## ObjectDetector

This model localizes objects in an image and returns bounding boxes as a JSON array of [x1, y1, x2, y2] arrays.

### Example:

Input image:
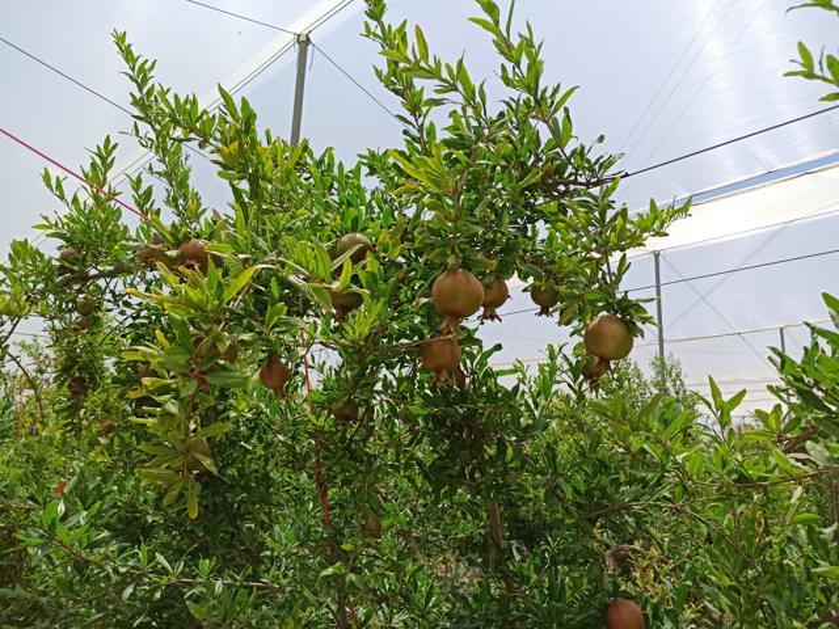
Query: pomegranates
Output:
[[71, 316, 90, 332], [582, 355, 603, 385], [419, 339, 461, 388], [195, 335, 237, 363], [260, 354, 290, 401], [132, 231, 165, 258], [101, 421, 118, 436], [68, 375, 88, 398], [477, 278, 509, 322], [75, 299, 97, 316], [173, 237, 208, 271], [607, 598, 646, 629], [585, 313, 634, 373], [334, 231, 378, 265], [531, 288, 558, 318], [60, 249, 76, 259], [333, 402, 358, 427], [430, 269, 484, 335], [330, 292, 364, 324]]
